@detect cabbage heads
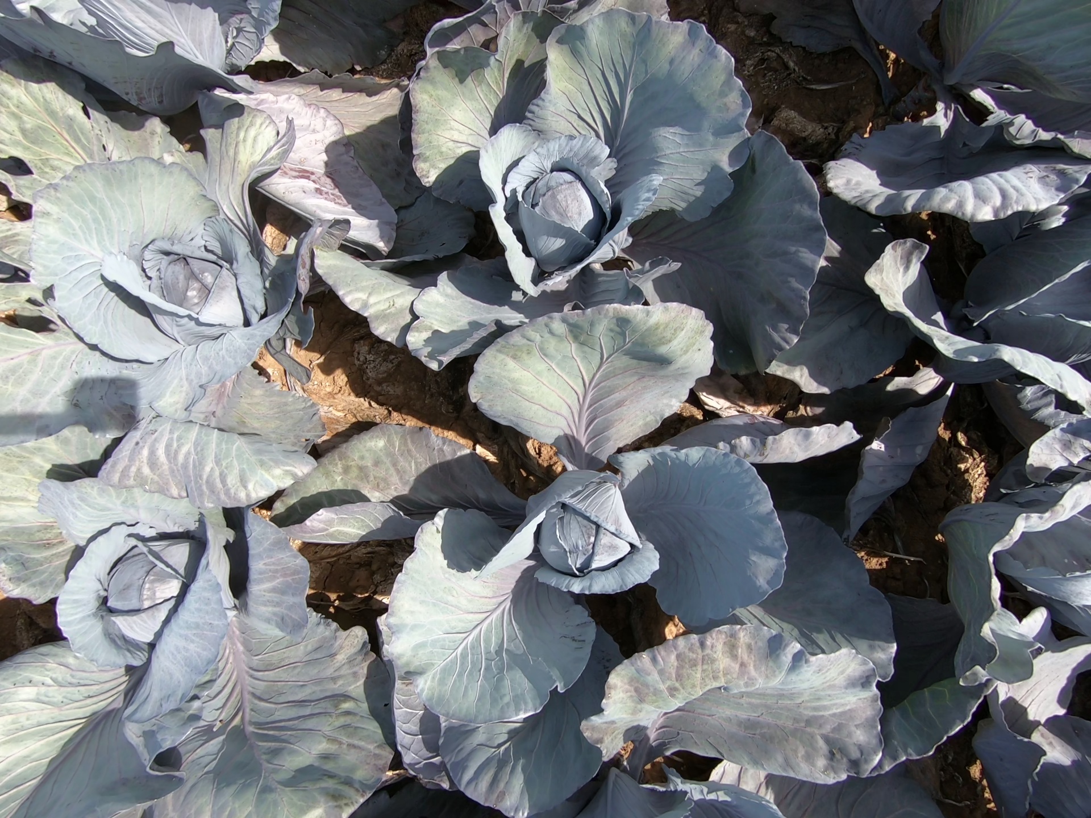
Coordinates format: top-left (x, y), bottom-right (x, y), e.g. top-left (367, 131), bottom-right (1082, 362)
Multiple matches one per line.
top-left (151, 253), bottom-right (250, 341)
top-left (105, 540), bottom-right (220, 644)
top-left (520, 170), bottom-right (612, 249)
top-left (981, 242), bottom-right (1086, 359)
top-left (538, 487), bottom-right (630, 575)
